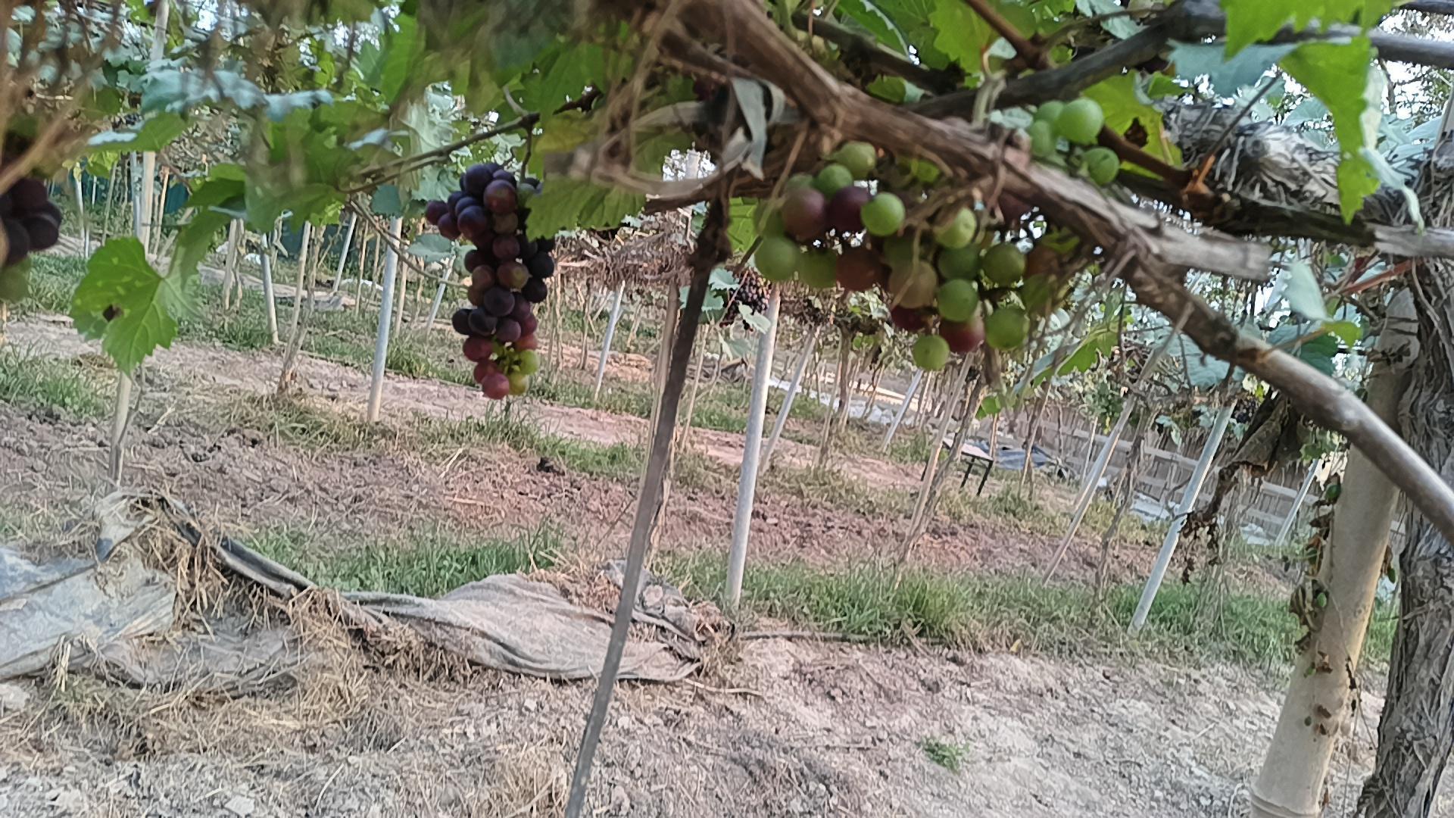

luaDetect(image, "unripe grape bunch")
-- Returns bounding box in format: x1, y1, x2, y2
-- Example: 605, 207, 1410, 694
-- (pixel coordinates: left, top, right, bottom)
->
750, 95, 1119, 370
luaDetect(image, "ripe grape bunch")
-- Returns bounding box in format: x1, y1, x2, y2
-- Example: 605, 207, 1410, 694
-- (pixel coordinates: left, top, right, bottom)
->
0, 127, 62, 270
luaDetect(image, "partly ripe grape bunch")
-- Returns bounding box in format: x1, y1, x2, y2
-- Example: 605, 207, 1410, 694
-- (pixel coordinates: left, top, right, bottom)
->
426, 164, 554, 399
